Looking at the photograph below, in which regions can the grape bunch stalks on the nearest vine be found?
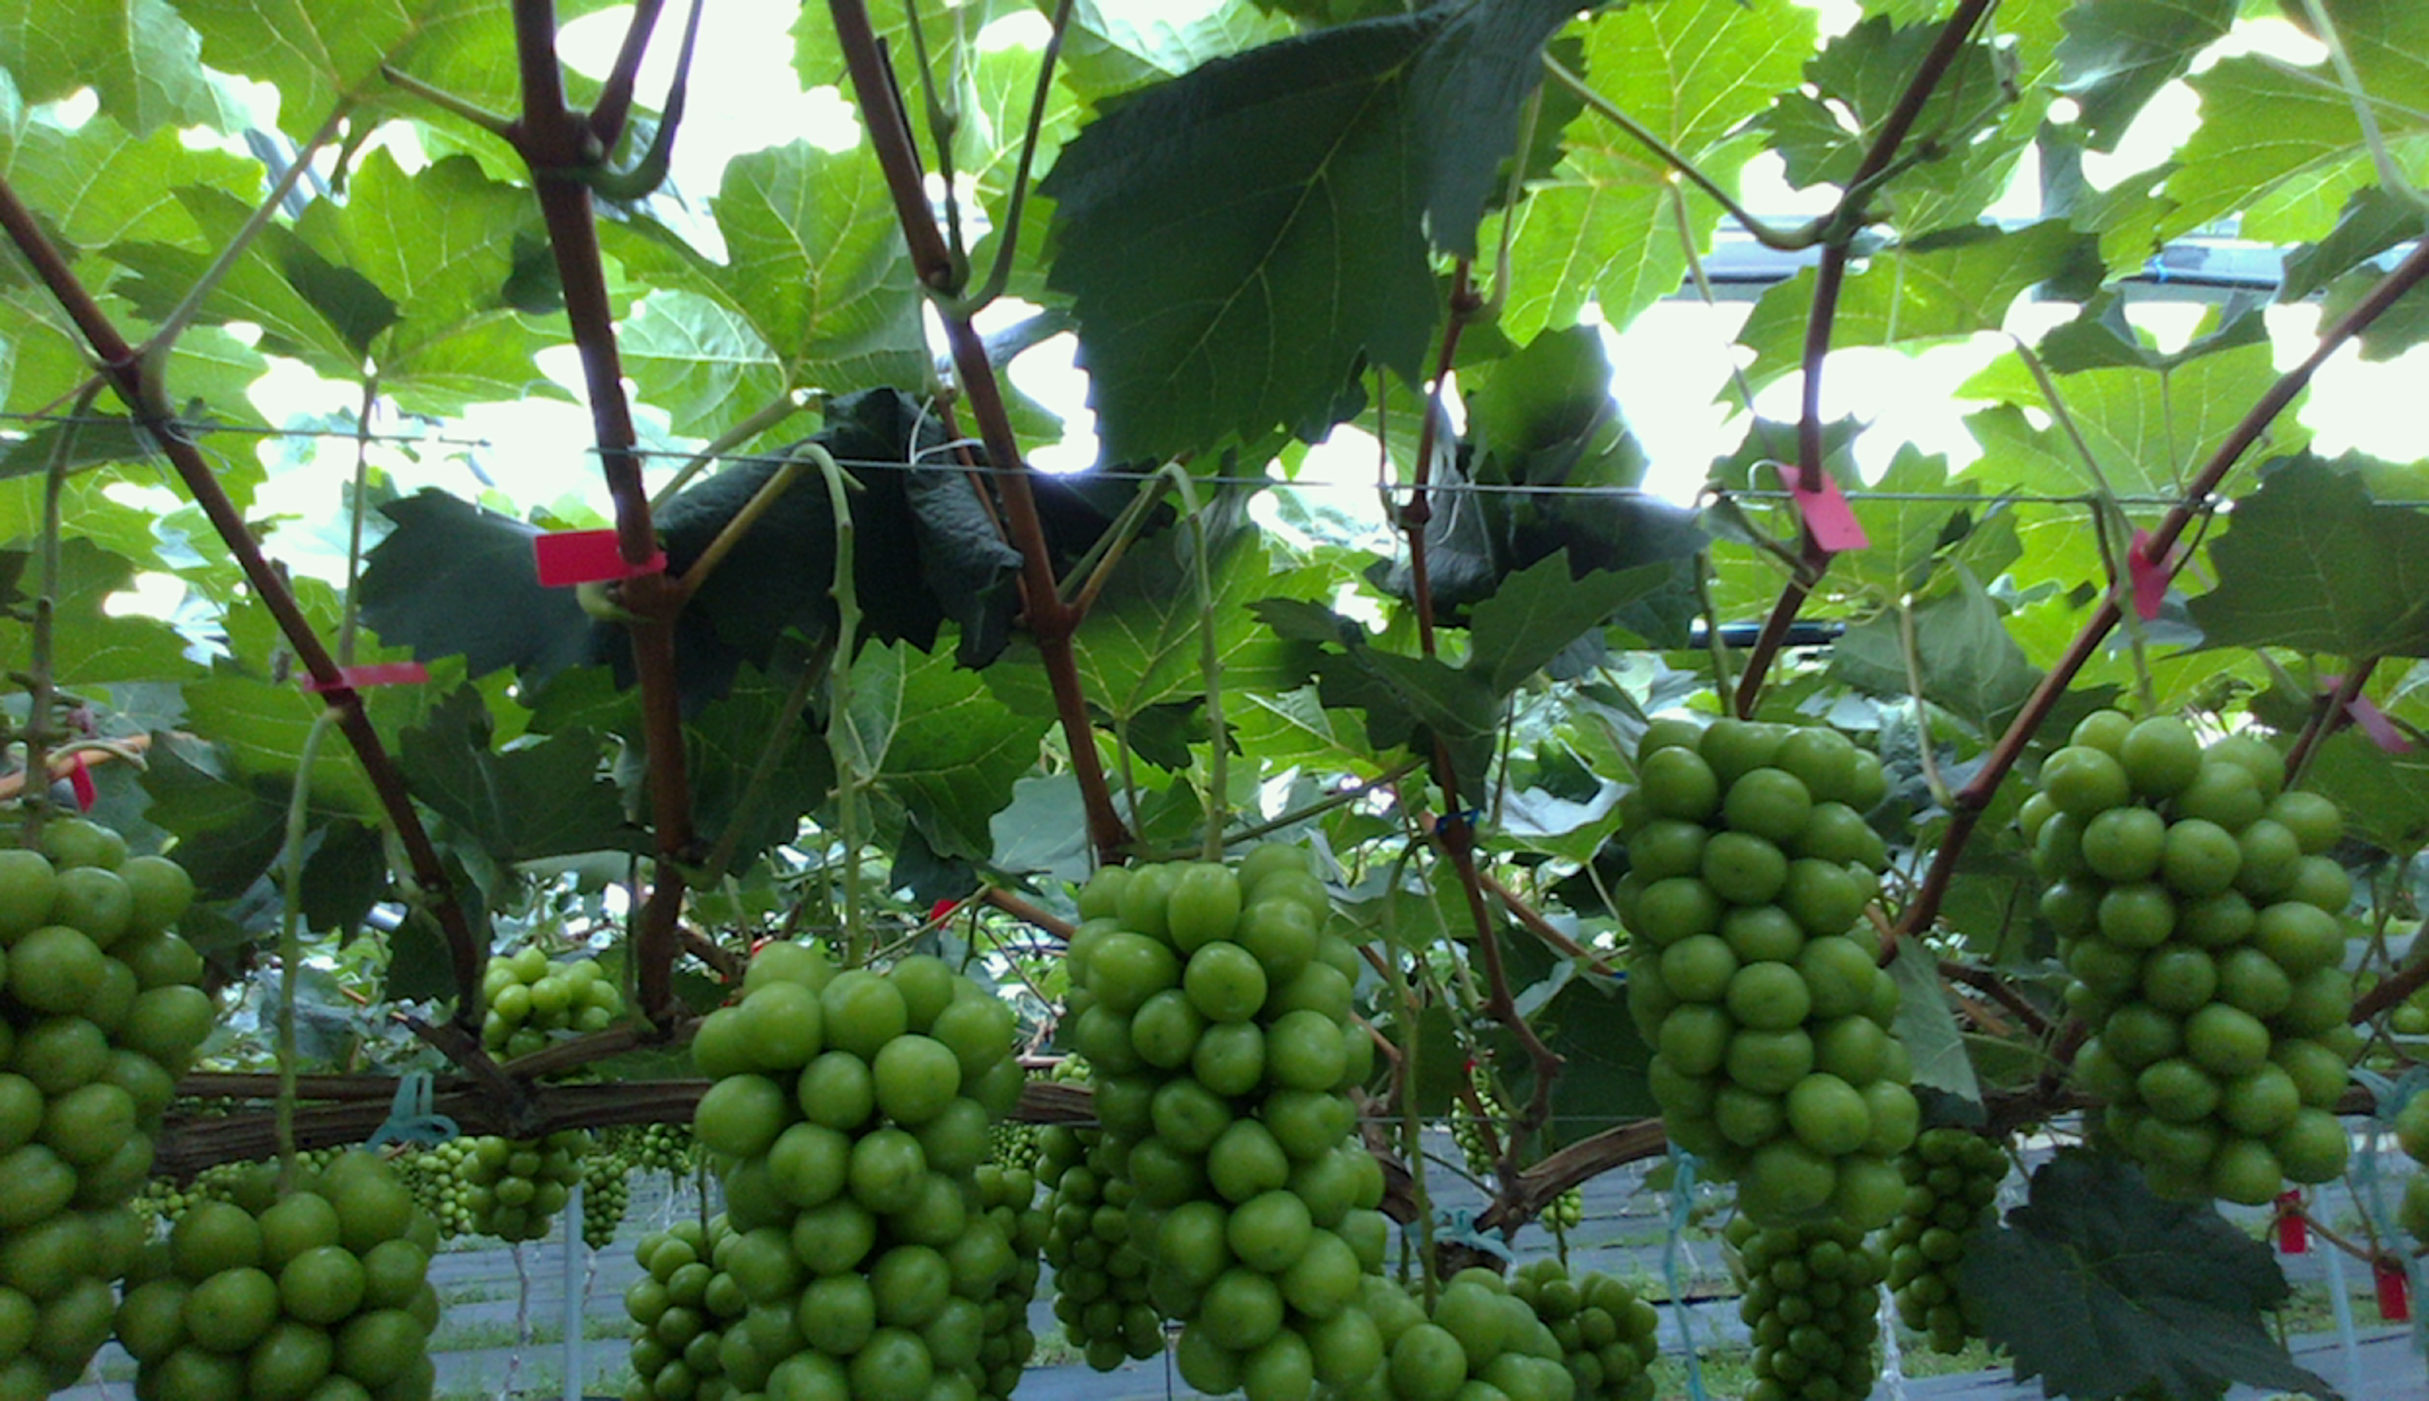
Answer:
[6,422,82,852]
[1693,549,1734,710]
[1072,465,1226,862]
[1372,850,1436,1311]
[274,724,325,1189]
[677,444,862,967]
[2098,492,2153,716]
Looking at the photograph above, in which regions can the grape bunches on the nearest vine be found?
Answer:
[117,1148,438,1399]
[1617,716,1921,1236]
[2018,708,2351,1208]
[1061,846,1388,1399]
[1351,1271,1573,1399]
[0,817,218,1399]
[693,940,1018,1399]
